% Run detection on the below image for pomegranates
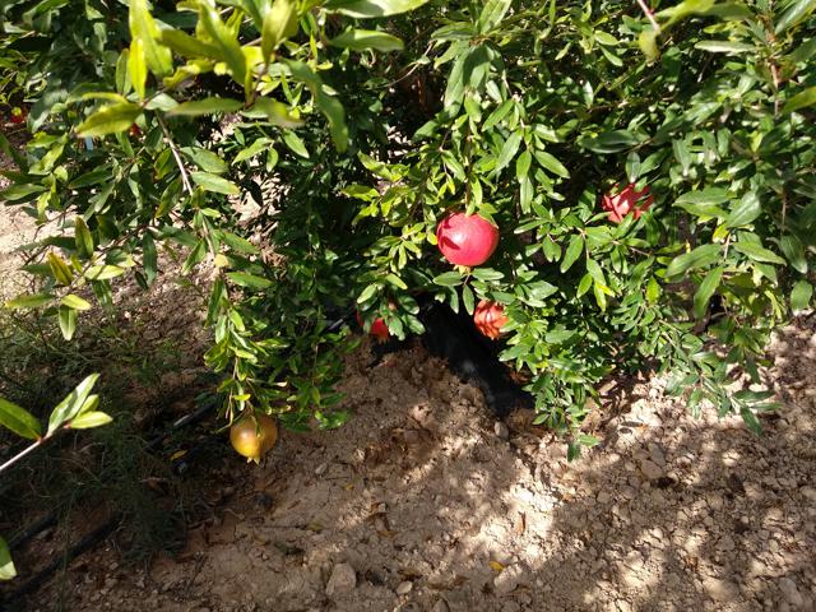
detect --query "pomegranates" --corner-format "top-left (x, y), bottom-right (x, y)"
top-left (473, 298), bottom-right (509, 339)
top-left (356, 311), bottom-right (393, 344)
top-left (601, 182), bottom-right (654, 224)
top-left (435, 209), bottom-right (500, 274)
top-left (229, 414), bottom-right (279, 465)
